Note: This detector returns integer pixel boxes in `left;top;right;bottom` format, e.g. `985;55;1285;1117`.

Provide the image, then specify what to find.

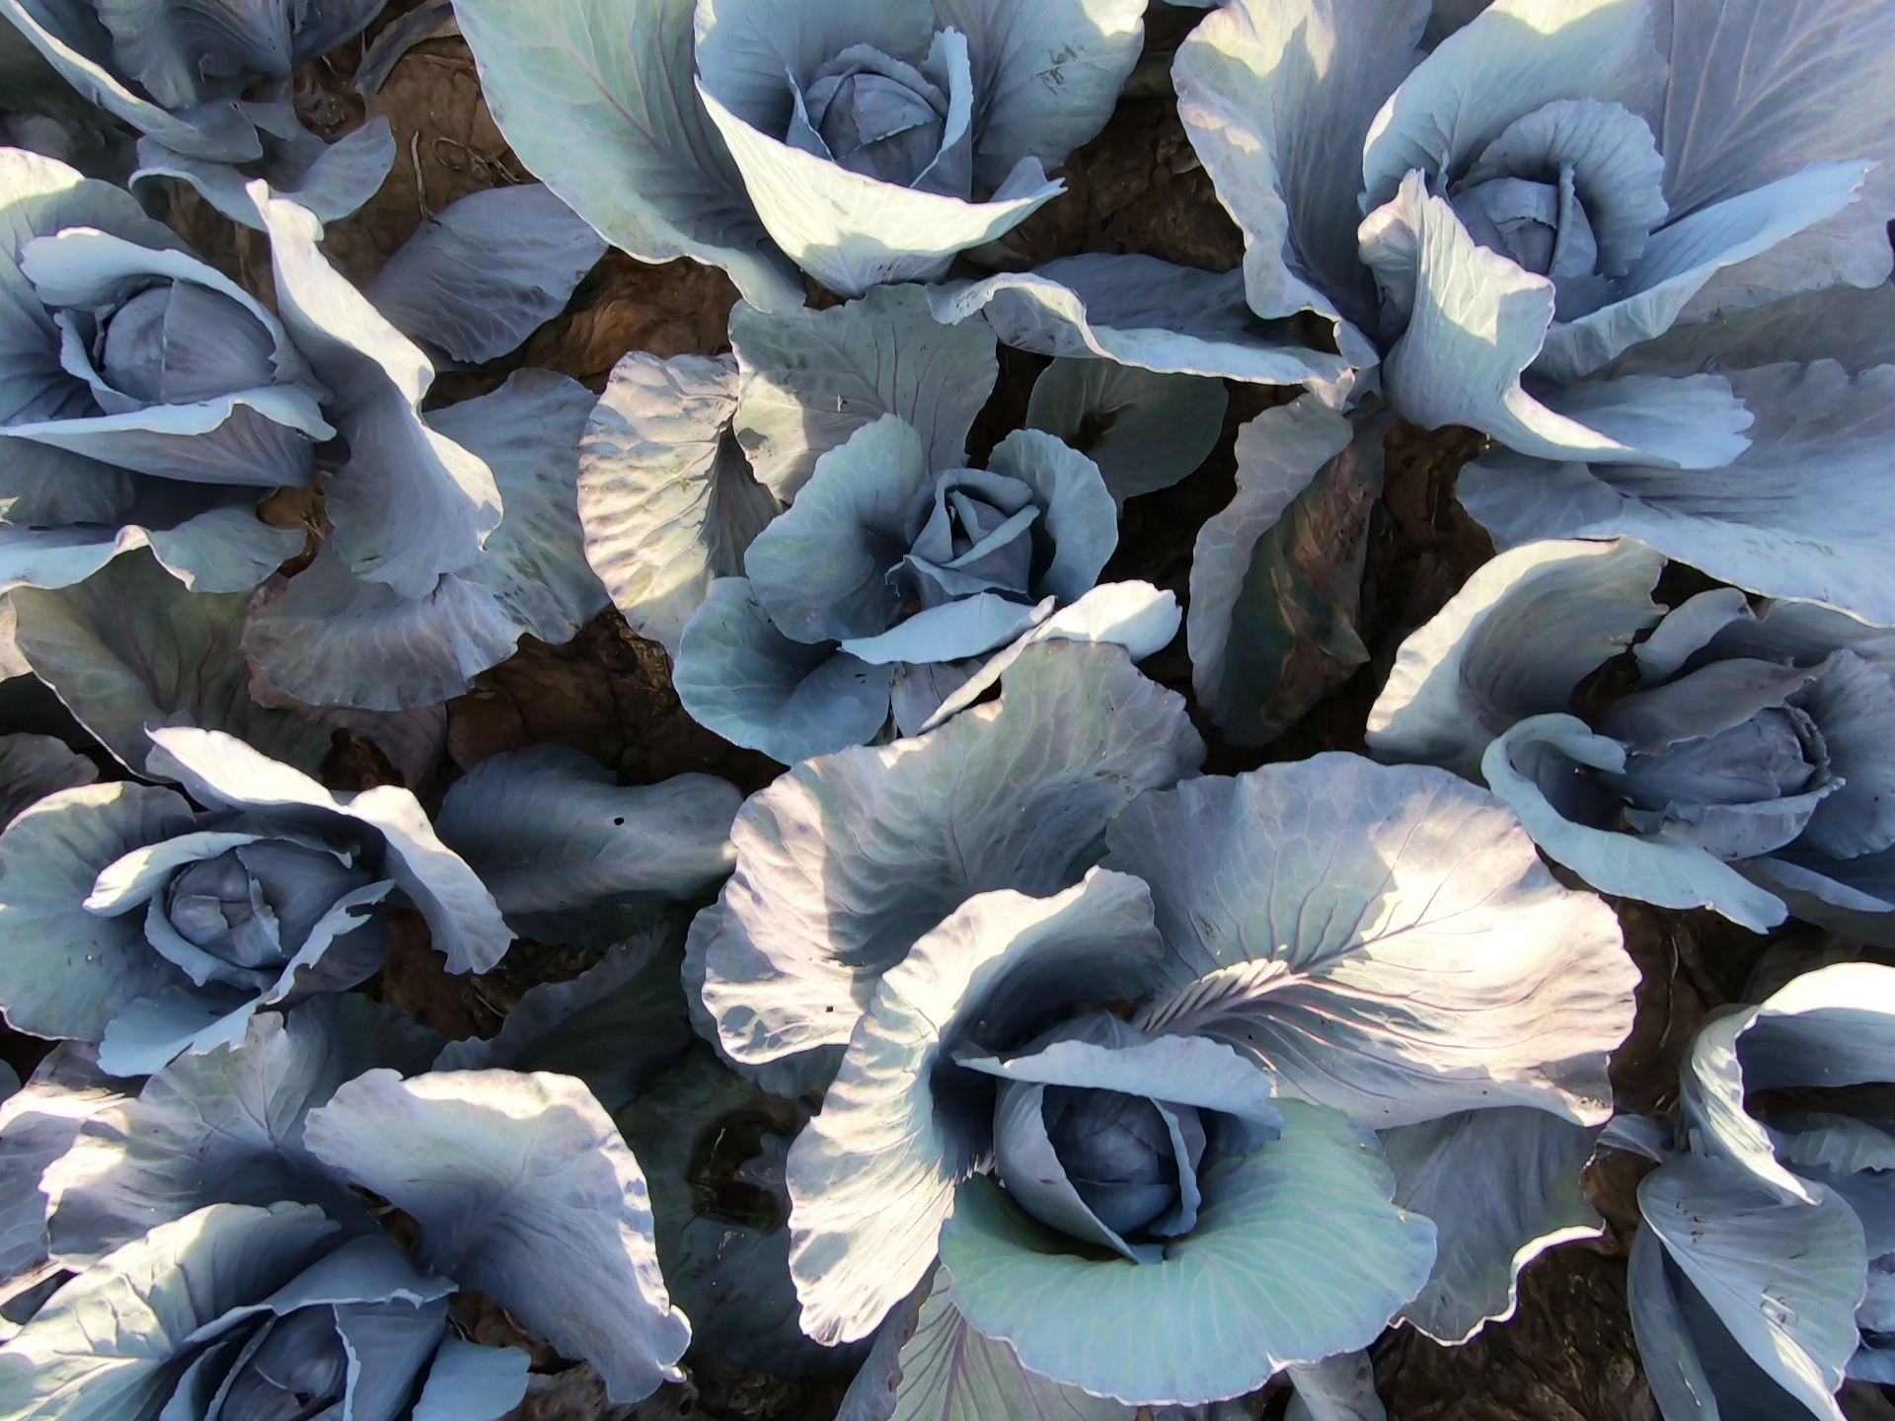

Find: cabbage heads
1771;1158;1893;1333
914;512;1037;619
214;1284;422;1418
790;68;949;238
168;826;346;978
1013;1049;1196;1237
102;277;287;434
1624;691;1818;850
1432;184;1605;338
